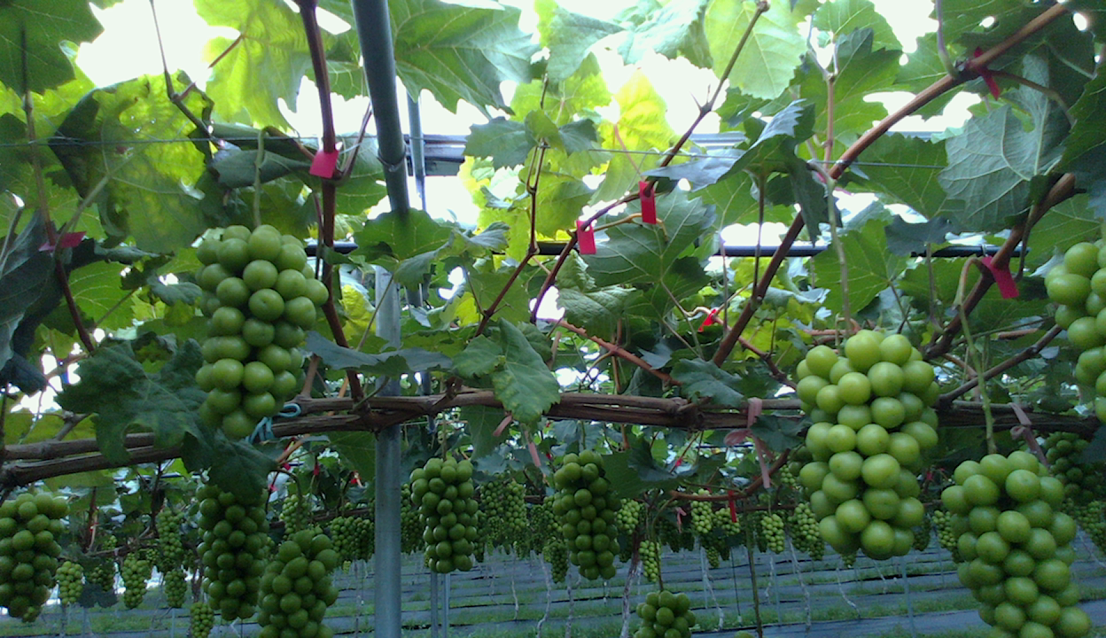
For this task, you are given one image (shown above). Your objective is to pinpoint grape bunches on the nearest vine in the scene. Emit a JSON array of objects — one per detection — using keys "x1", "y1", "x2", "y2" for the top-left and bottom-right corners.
[
  {"x1": 796, "y1": 328, "x2": 940, "y2": 561},
  {"x1": 193, "y1": 224, "x2": 329, "y2": 438},
  {"x1": 941, "y1": 451, "x2": 1090, "y2": 637}
]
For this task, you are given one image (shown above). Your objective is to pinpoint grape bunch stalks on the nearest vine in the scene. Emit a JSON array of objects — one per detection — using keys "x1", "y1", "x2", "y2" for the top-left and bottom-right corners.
[
  {"x1": 812, "y1": 163, "x2": 853, "y2": 338},
  {"x1": 253, "y1": 126, "x2": 314, "y2": 228},
  {"x1": 950, "y1": 257, "x2": 997, "y2": 455}
]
